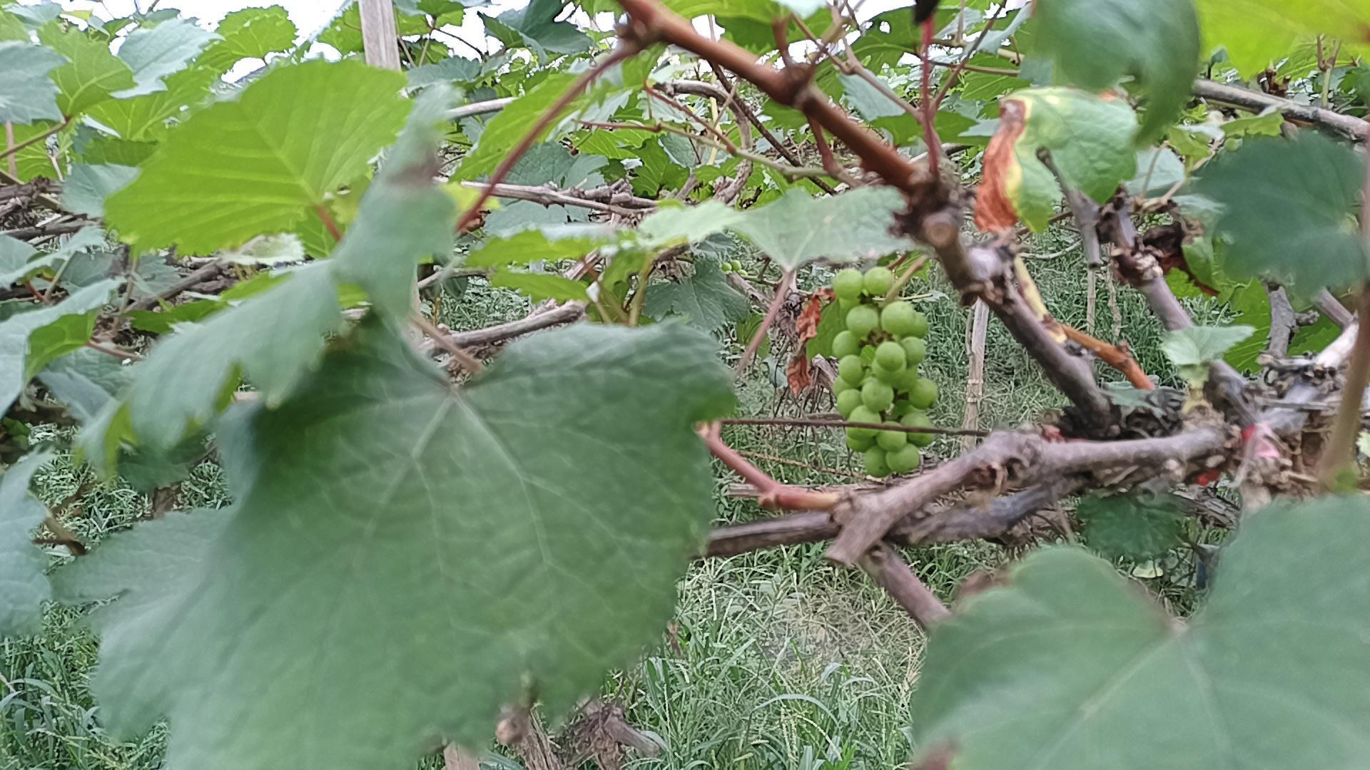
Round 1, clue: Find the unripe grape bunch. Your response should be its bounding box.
[832,267,938,478]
